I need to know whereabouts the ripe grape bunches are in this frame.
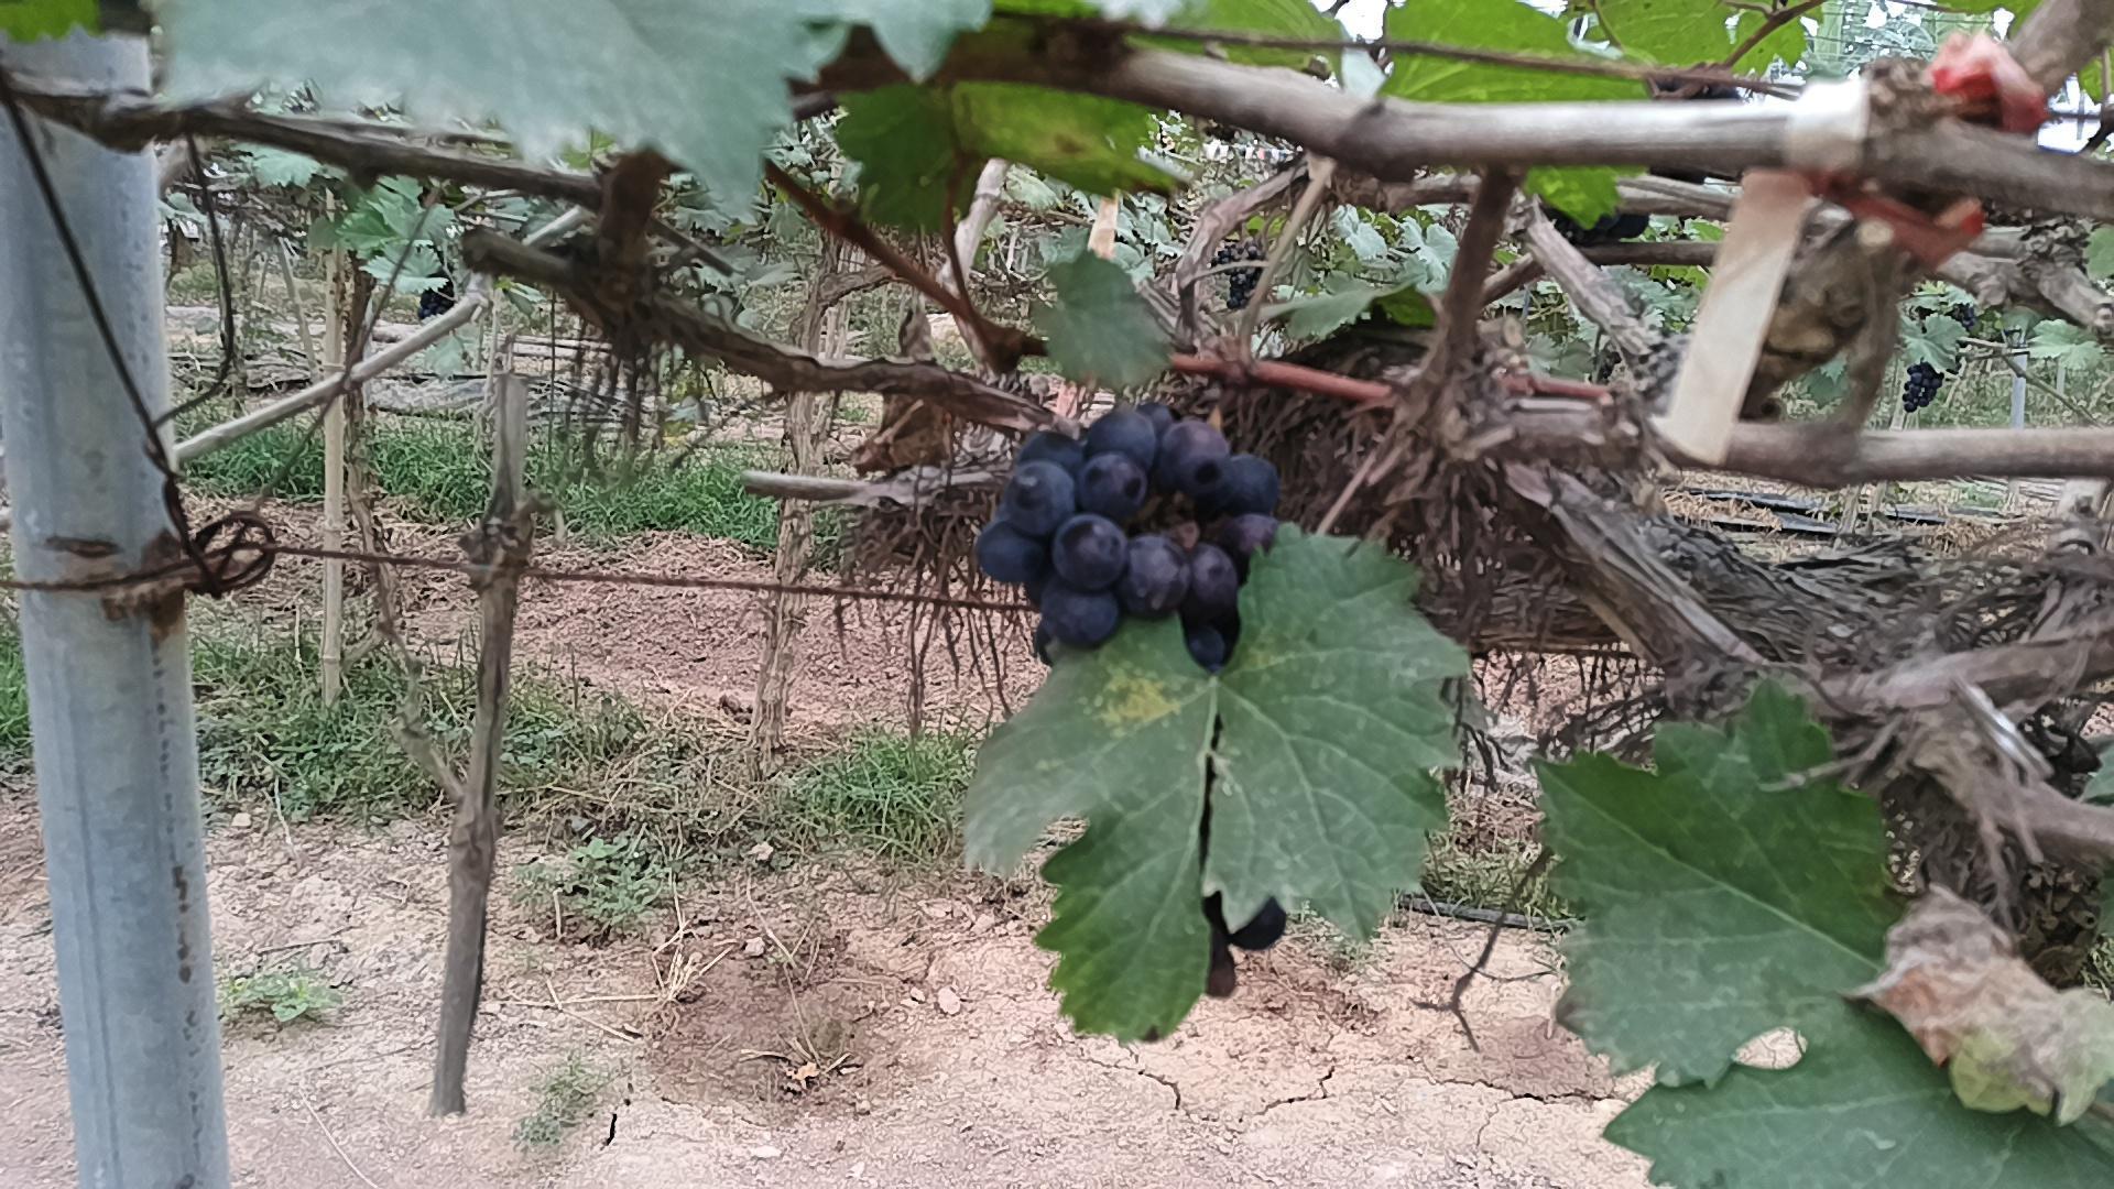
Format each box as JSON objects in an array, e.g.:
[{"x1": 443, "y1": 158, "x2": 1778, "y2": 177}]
[
  {"x1": 1647, "y1": 165, "x2": 1709, "y2": 186},
  {"x1": 1943, "y1": 302, "x2": 1976, "y2": 332},
  {"x1": 1654, "y1": 79, "x2": 1741, "y2": 100},
  {"x1": 1211, "y1": 240, "x2": 1266, "y2": 310},
  {"x1": 1199, "y1": 713, "x2": 1287, "y2": 1001},
  {"x1": 1540, "y1": 206, "x2": 1653, "y2": 248},
  {"x1": 1914, "y1": 305, "x2": 1935, "y2": 335},
  {"x1": 417, "y1": 246, "x2": 455, "y2": 320},
  {"x1": 1900, "y1": 362, "x2": 1944, "y2": 414},
  {"x1": 1946, "y1": 356, "x2": 1962, "y2": 375},
  {"x1": 1957, "y1": 341, "x2": 1968, "y2": 348},
  {"x1": 977, "y1": 402, "x2": 1279, "y2": 676}
]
